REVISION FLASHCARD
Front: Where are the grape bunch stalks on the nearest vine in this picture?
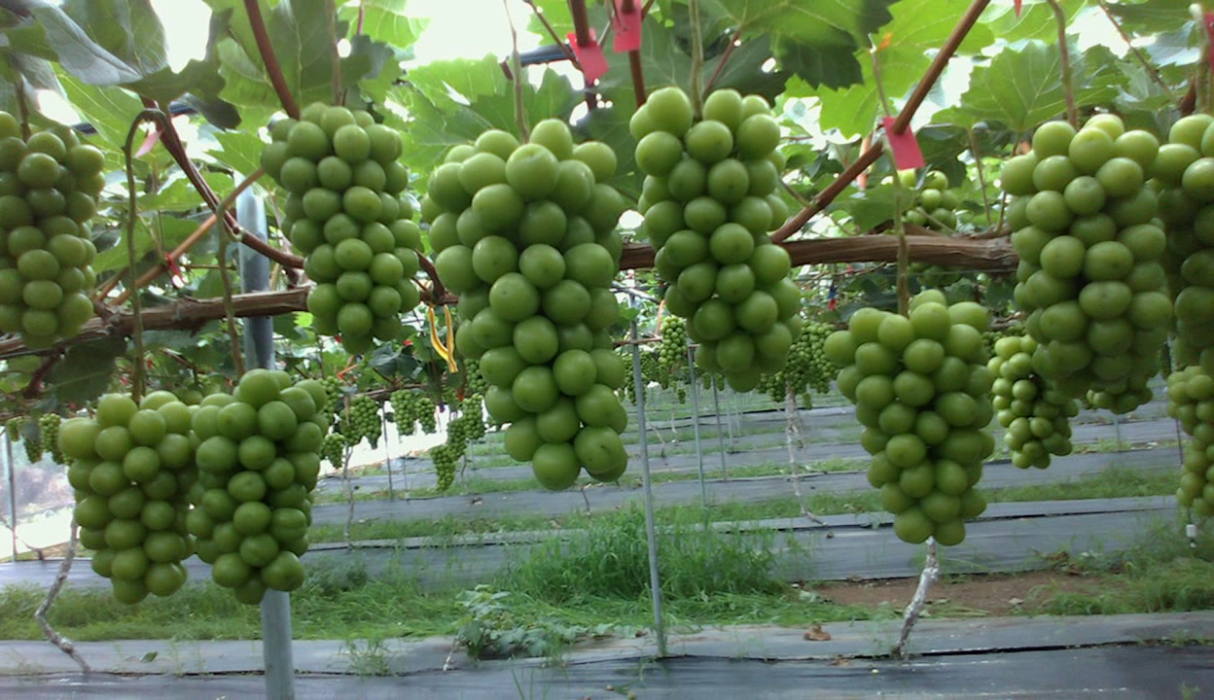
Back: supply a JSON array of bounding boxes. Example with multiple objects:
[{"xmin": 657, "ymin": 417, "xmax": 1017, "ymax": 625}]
[
  {"xmin": 1188, "ymin": 3, "xmax": 1211, "ymax": 112},
  {"xmin": 326, "ymin": 1, "xmax": 341, "ymax": 103},
  {"xmin": 504, "ymin": 0, "xmax": 528, "ymax": 142},
  {"xmin": 122, "ymin": 109, "xmax": 161, "ymax": 402},
  {"xmin": 214, "ymin": 170, "xmax": 261, "ymax": 375},
  {"xmin": 880, "ymin": 134, "xmax": 910, "ymax": 315},
  {"xmin": 15, "ymin": 86, "xmax": 30, "ymax": 140},
  {"xmin": 688, "ymin": 0, "xmax": 705, "ymax": 120},
  {"xmin": 1050, "ymin": 2, "xmax": 1077, "ymax": 126}
]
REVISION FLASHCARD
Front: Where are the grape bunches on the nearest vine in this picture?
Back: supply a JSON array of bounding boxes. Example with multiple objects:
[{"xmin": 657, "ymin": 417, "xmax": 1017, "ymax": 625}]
[
  {"xmin": 263, "ymin": 101, "xmax": 420, "ymax": 357},
  {"xmin": 423, "ymin": 119, "xmax": 628, "ymax": 493},
  {"xmin": 630, "ymin": 87, "xmax": 803, "ymax": 393},
  {"xmin": 188, "ymin": 367, "xmax": 330, "ymax": 608},
  {"xmin": 1154, "ymin": 114, "xmax": 1213, "ymax": 375},
  {"xmin": 0, "ymin": 110, "xmax": 108, "ymax": 352},
  {"xmin": 56, "ymin": 392, "xmax": 197, "ymax": 607},
  {"xmin": 1002, "ymin": 114, "xmax": 1170, "ymax": 399},
  {"xmin": 826, "ymin": 292, "xmax": 997, "ymax": 544}
]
